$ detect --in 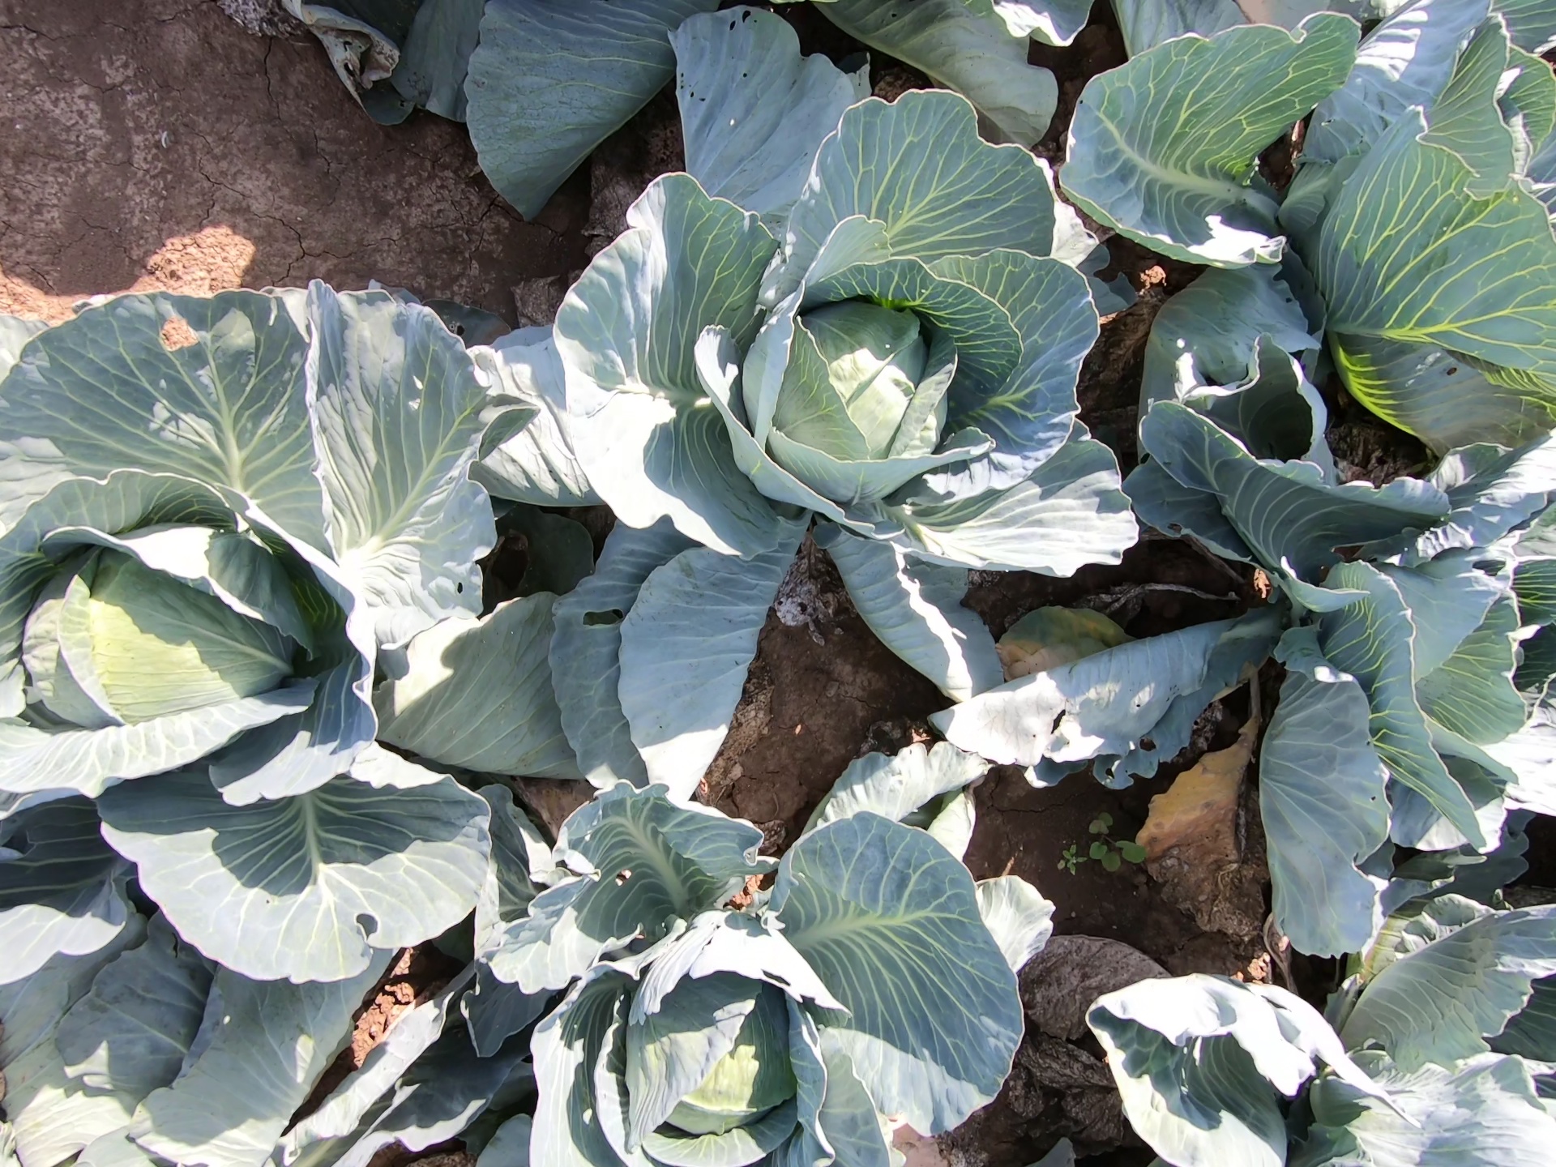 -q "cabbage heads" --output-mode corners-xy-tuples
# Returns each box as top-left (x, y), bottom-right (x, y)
(759, 296), (954, 497)
(19, 520), (289, 725)
(626, 930), (808, 1137)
